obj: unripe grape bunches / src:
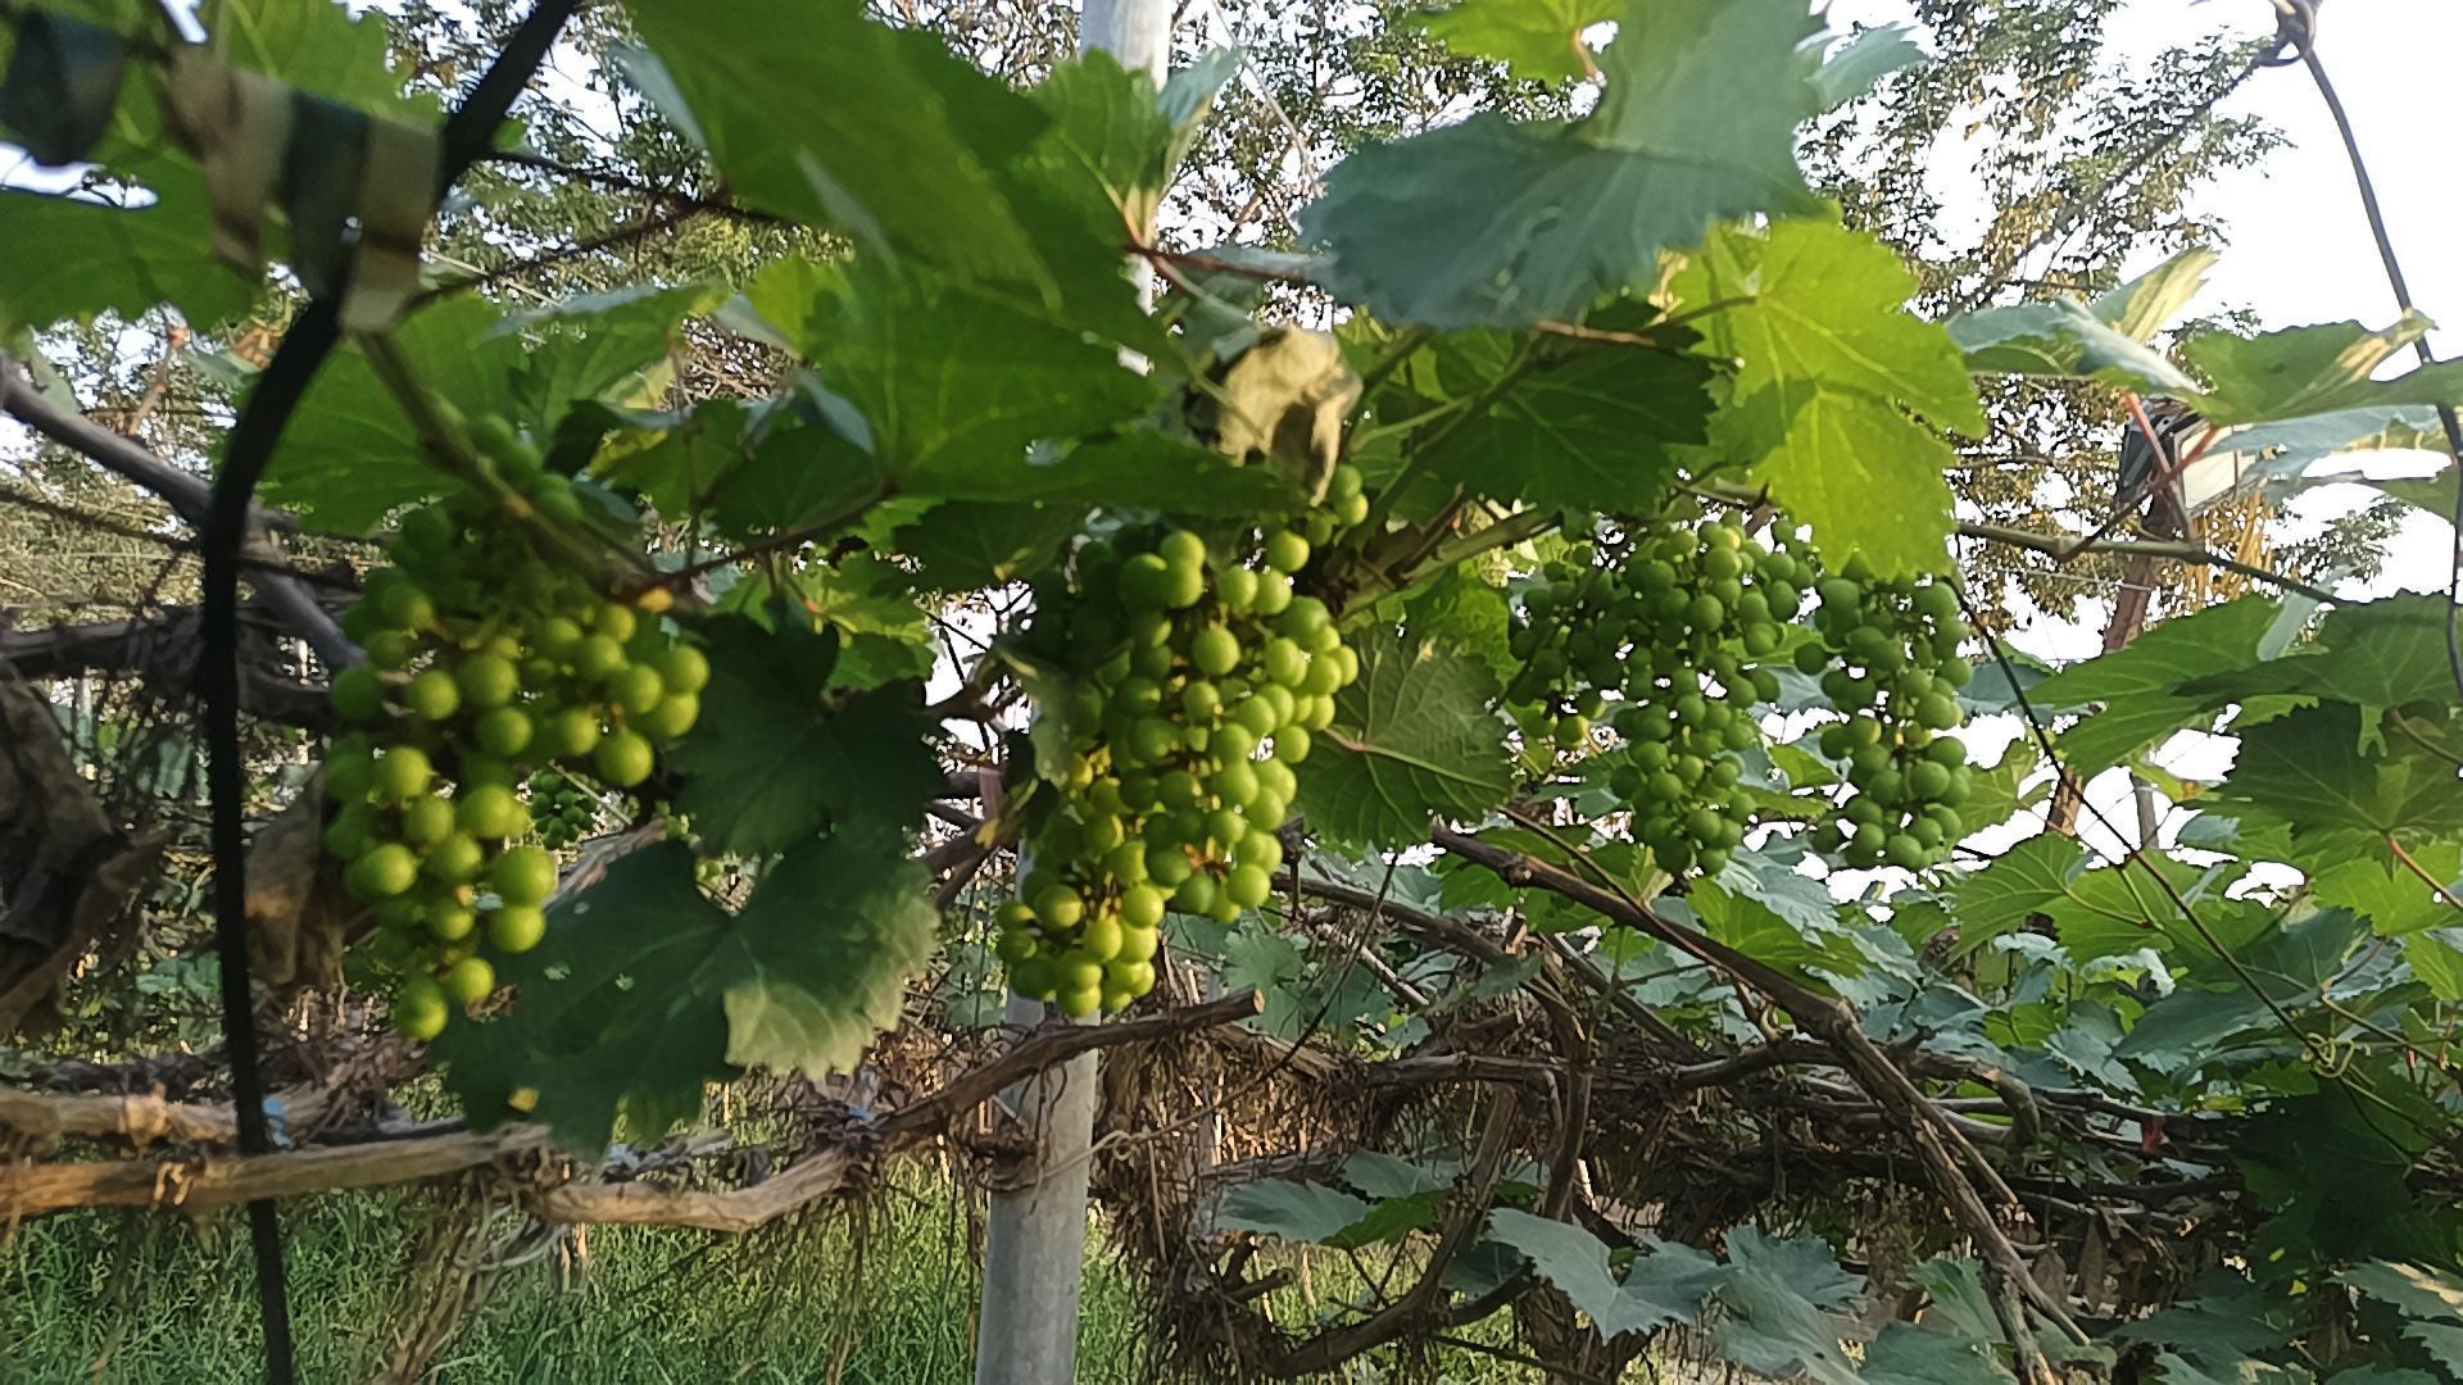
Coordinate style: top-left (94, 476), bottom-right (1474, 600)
top-left (1614, 519), bottom-right (1822, 878)
top-left (998, 748), bottom-right (1174, 1017)
top-left (1795, 564), bottom-right (1970, 867)
top-left (1506, 525), bottom-right (1629, 749)
top-left (326, 401), bottom-right (709, 1040)
top-left (527, 771), bottom-right (600, 848)
top-left (1024, 462), bottom-right (1366, 922)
